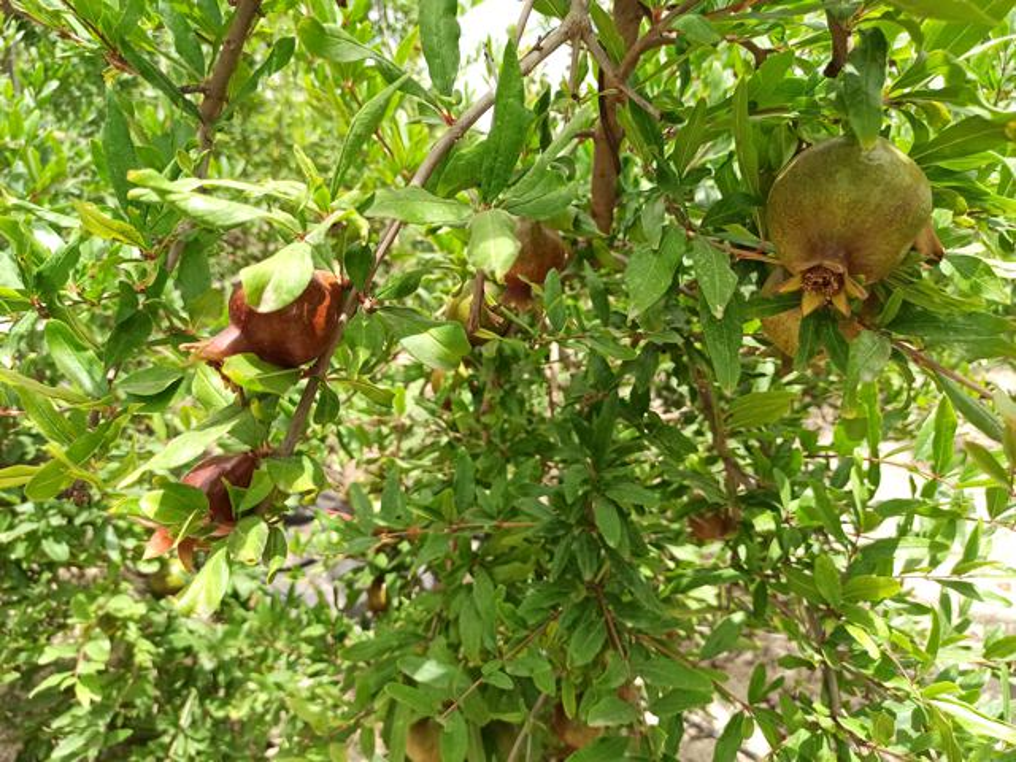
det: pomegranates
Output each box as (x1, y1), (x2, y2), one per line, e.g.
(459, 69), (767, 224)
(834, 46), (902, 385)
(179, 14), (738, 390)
(430, 356), (481, 411)
(764, 135), (933, 319)
(497, 219), (567, 317)
(178, 271), (346, 370)
(552, 703), (602, 762)
(130, 444), (281, 573)
(365, 583), (387, 613)
(403, 718), (443, 762)
(687, 513), (730, 538)
(151, 557), (190, 597)
(760, 264), (865, 362)
(446, 287), (511, 346)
